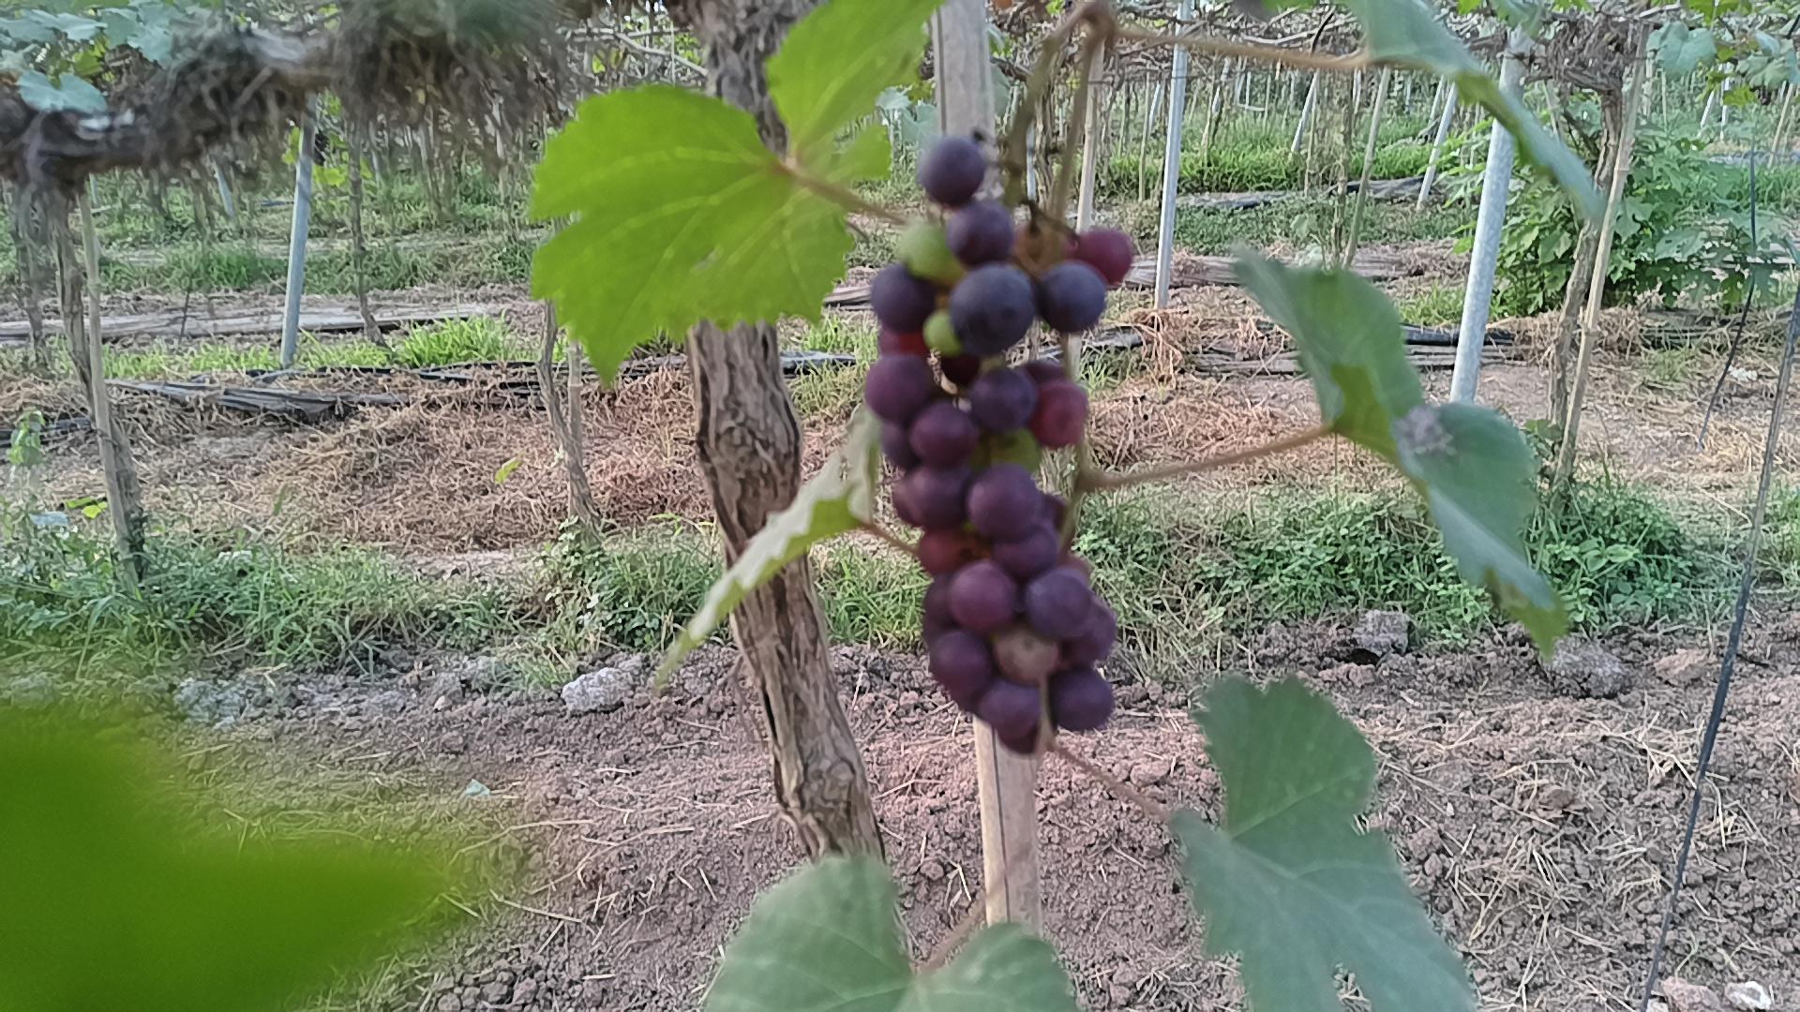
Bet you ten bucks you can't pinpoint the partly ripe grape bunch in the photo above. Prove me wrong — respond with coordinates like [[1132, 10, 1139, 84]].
[[866, 138, 1132, 755]]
